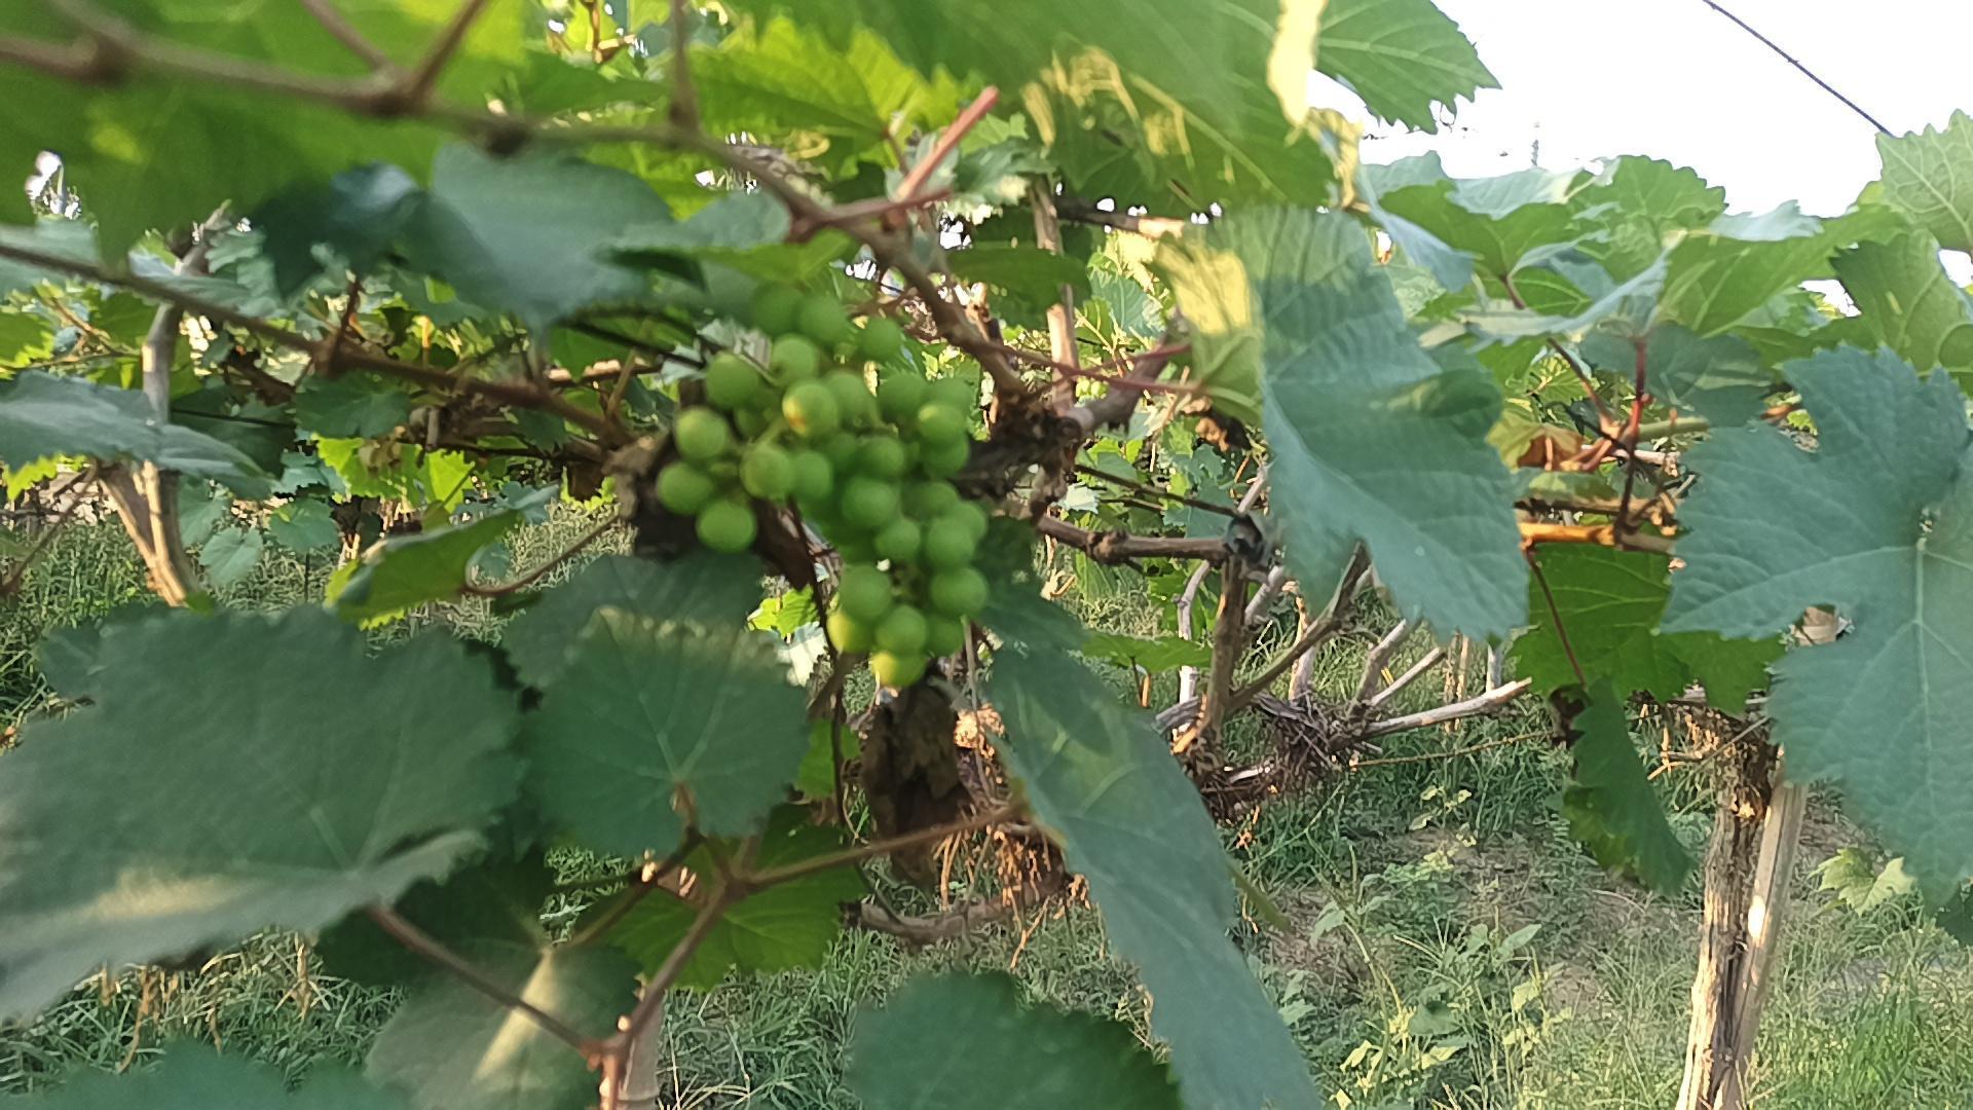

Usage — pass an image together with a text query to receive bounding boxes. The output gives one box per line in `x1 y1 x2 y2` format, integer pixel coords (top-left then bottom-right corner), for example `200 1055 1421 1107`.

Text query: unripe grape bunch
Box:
658 288 988 689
